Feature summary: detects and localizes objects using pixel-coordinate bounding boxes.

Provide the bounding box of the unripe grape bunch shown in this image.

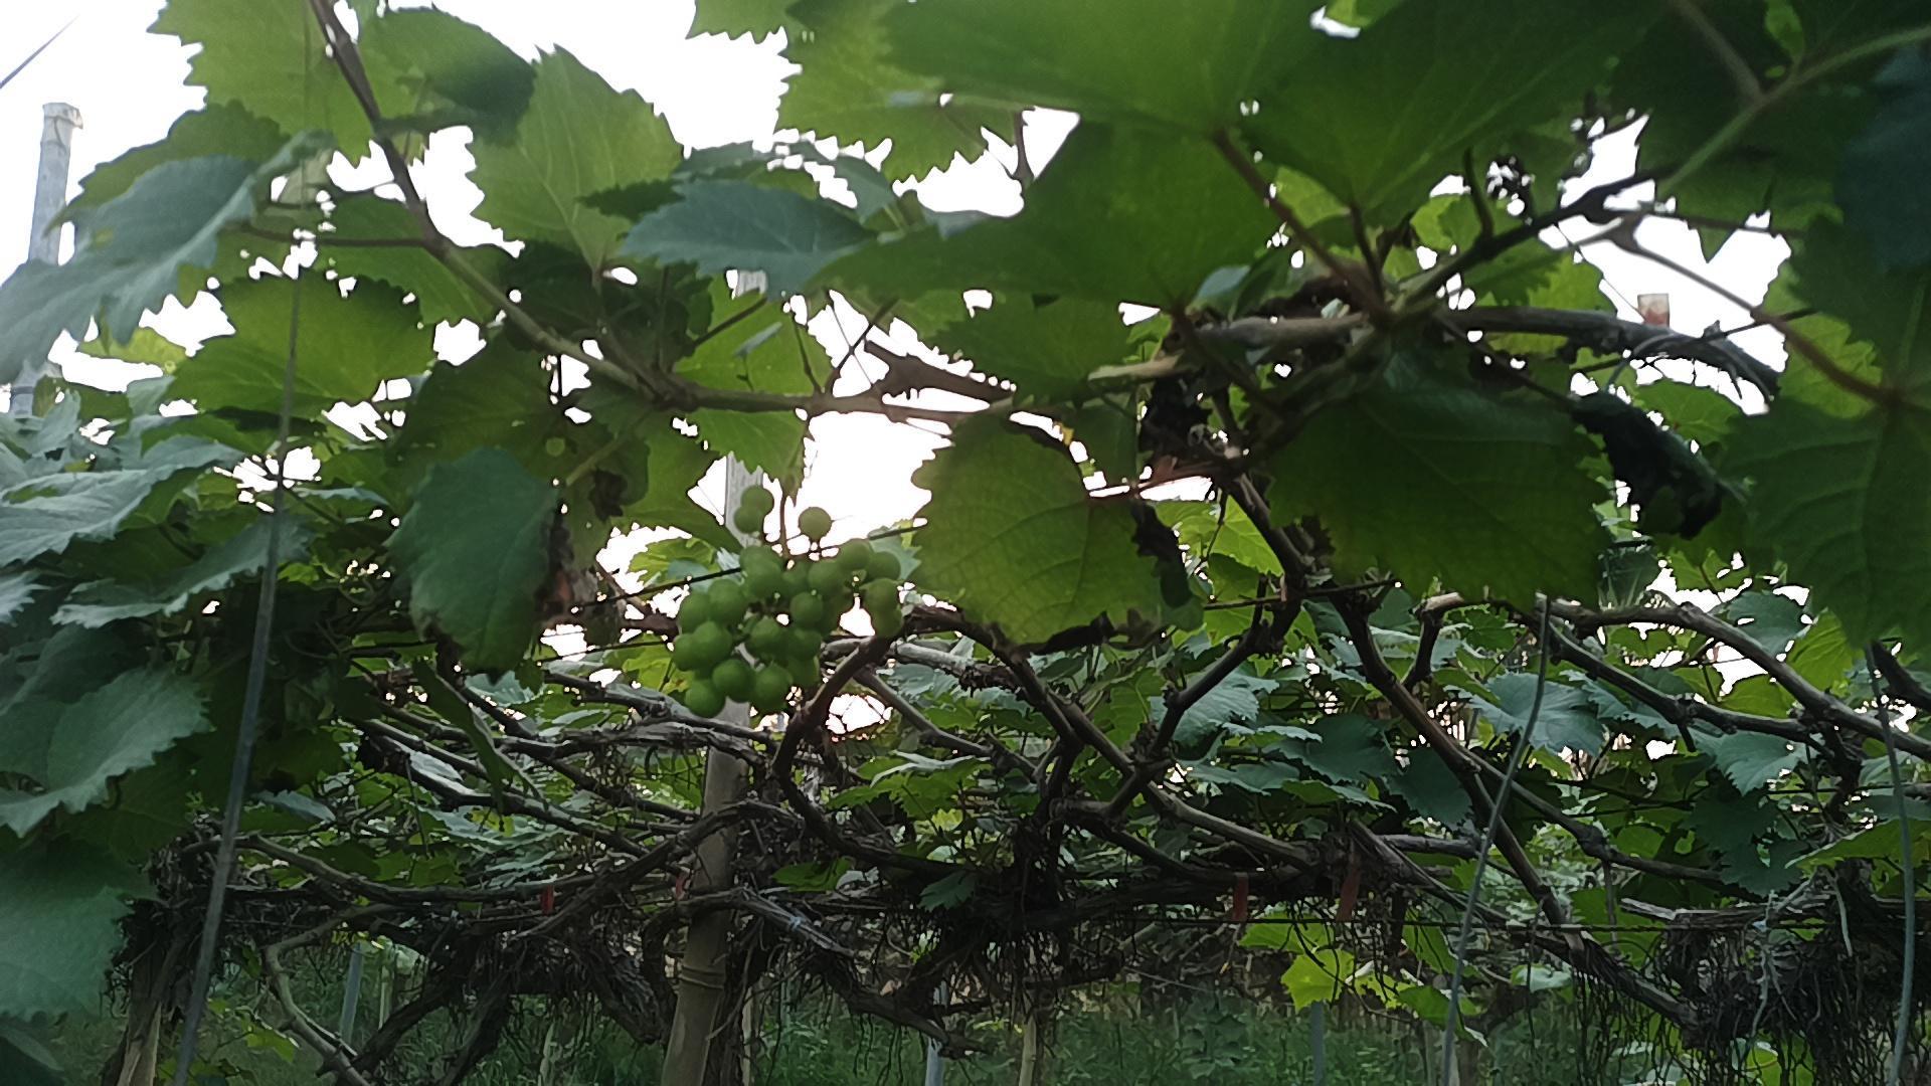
[672,485,903,716]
